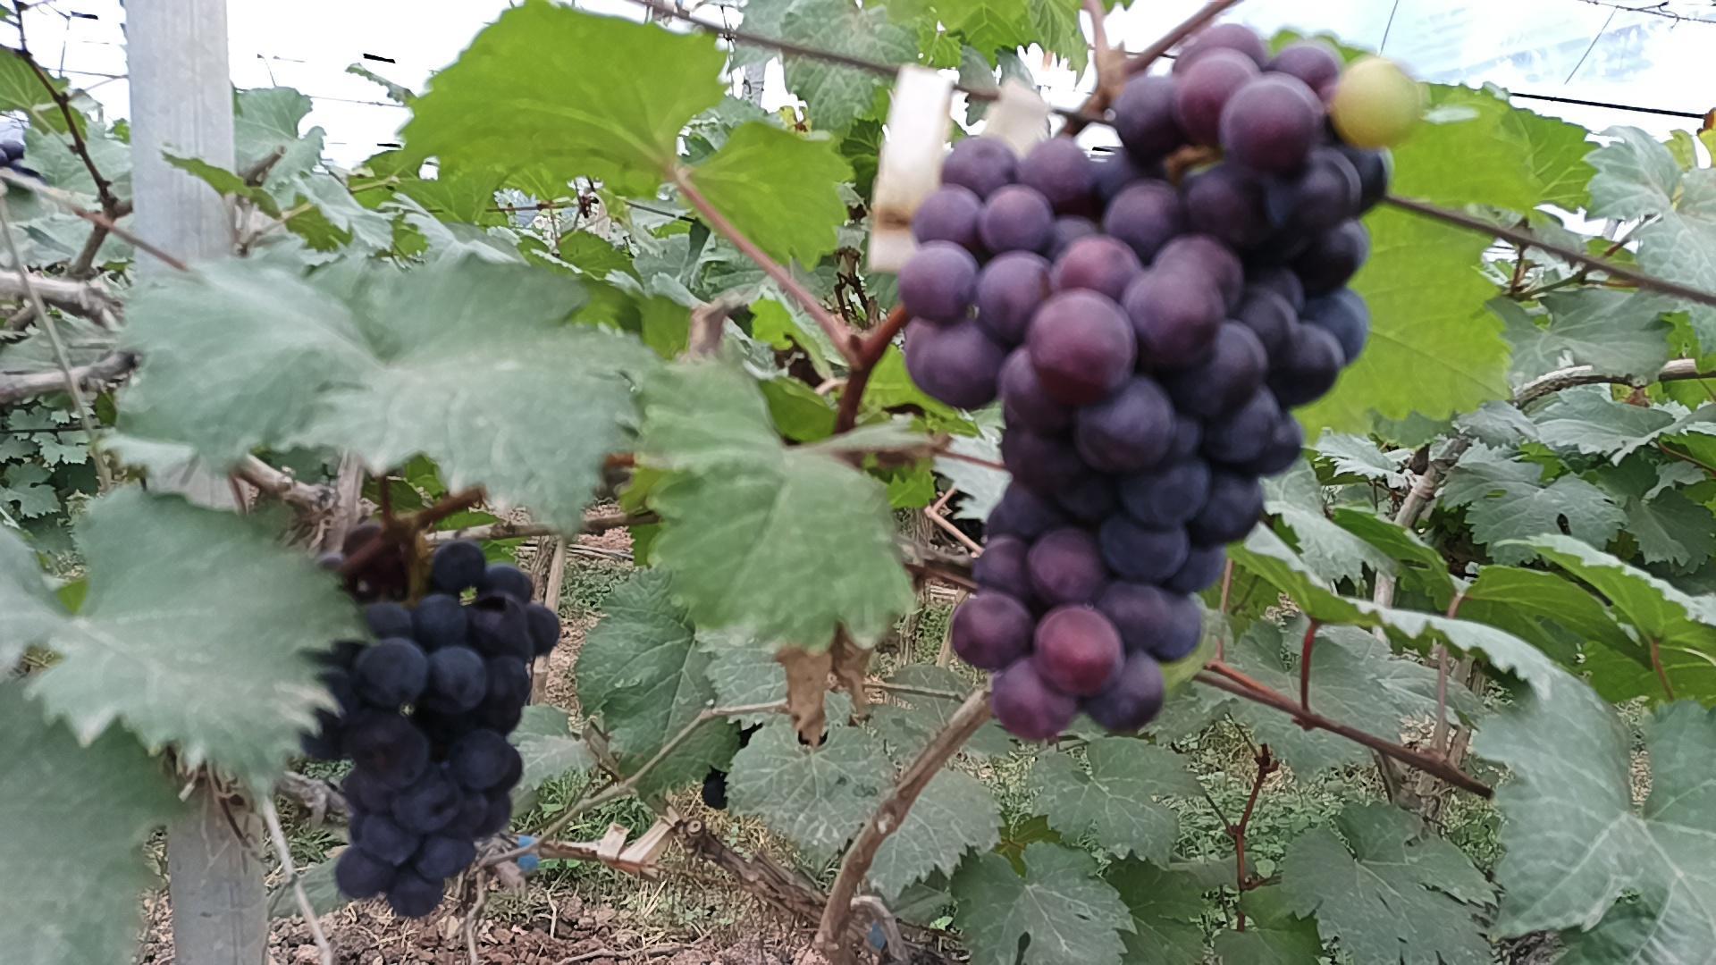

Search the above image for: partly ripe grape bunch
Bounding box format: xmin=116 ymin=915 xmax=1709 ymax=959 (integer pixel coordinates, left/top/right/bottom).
xmin=902 ymin=24 xmax=1425 ymax=738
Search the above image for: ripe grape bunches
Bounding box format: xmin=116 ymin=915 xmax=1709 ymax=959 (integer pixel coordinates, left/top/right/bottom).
xmin=304 ymin=521 xmax=558 ymax=916
xmin=698 ymin=768 xmax=728 ymax=810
